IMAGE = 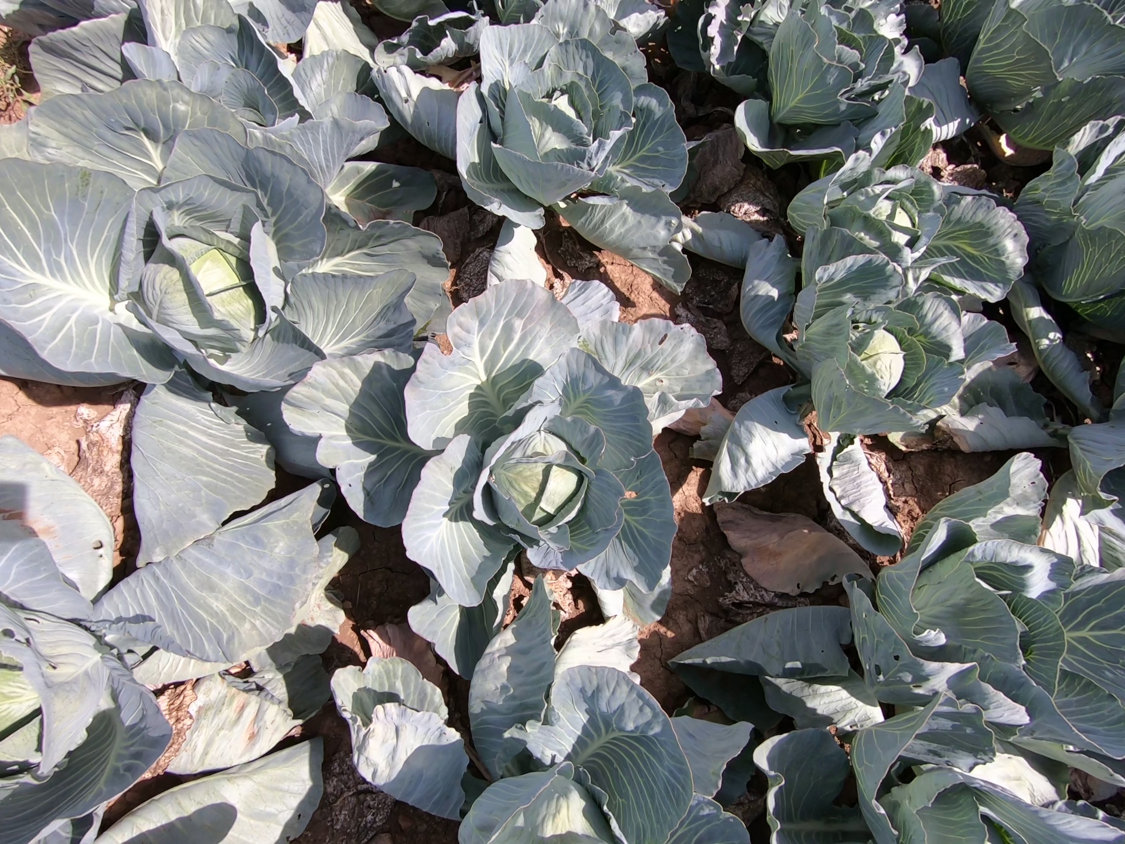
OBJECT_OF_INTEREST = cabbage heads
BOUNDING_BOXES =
[825,322,906,402]
[459,772,624,843]
[898,578,1012,663]
[508,94,588,176]
[486,431,587,529]
[838,192,917,261]
[0,614,104,765]
[140,233,281,349]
